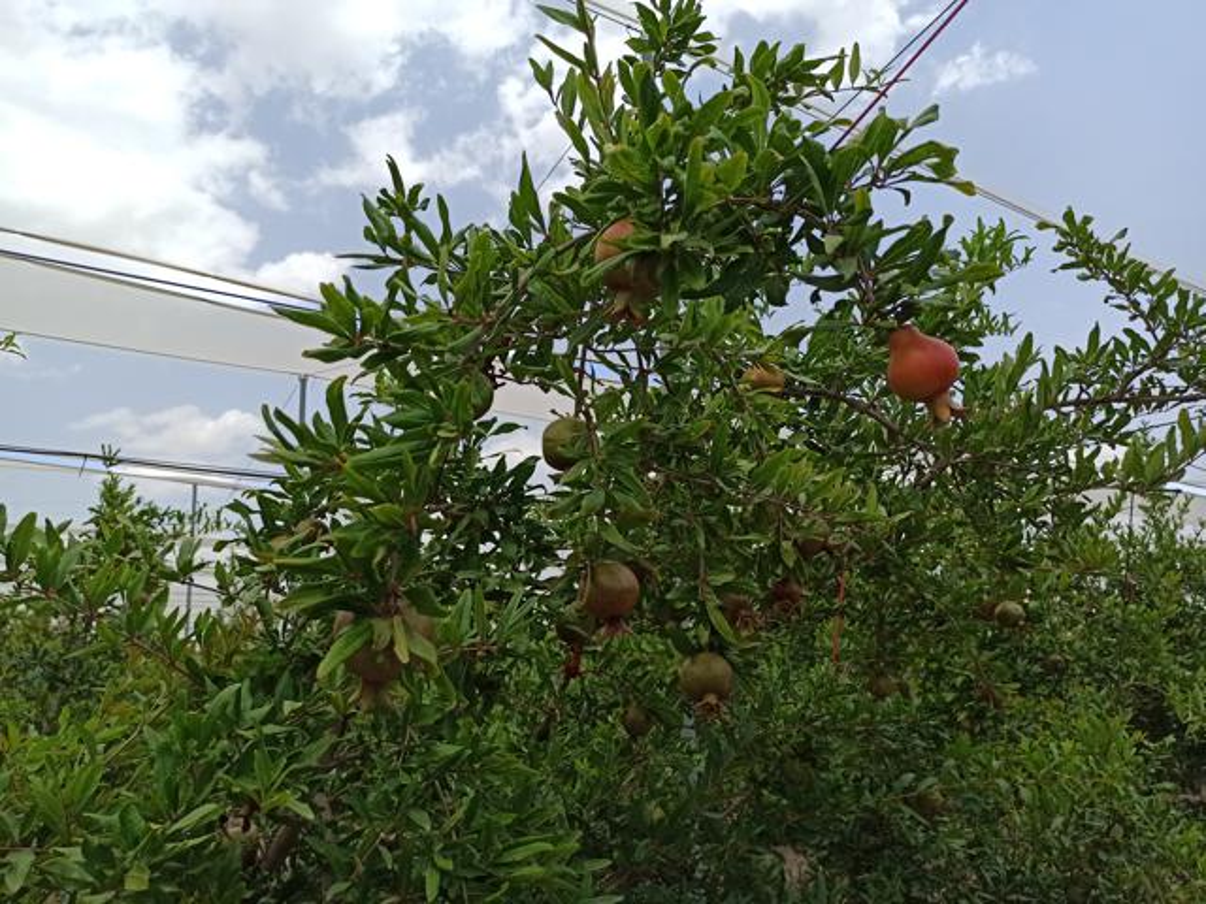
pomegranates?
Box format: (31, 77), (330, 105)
(594, 217), (660, 326)
(678, 652), (735, 721)
(543, 416), (575, 471)
(886, 324), (970, 433)
(580, 561), (641, 638)
(993, 599), (1025, 629)
(872, 674), (895, 697)
(622, 706), (652, 736)
(334, 608), (435, 684)
(801, 541), (840, 559)
(720, 593), (758, 629)
(773, 578), (803, 616)
(741, 365), (784, 390)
